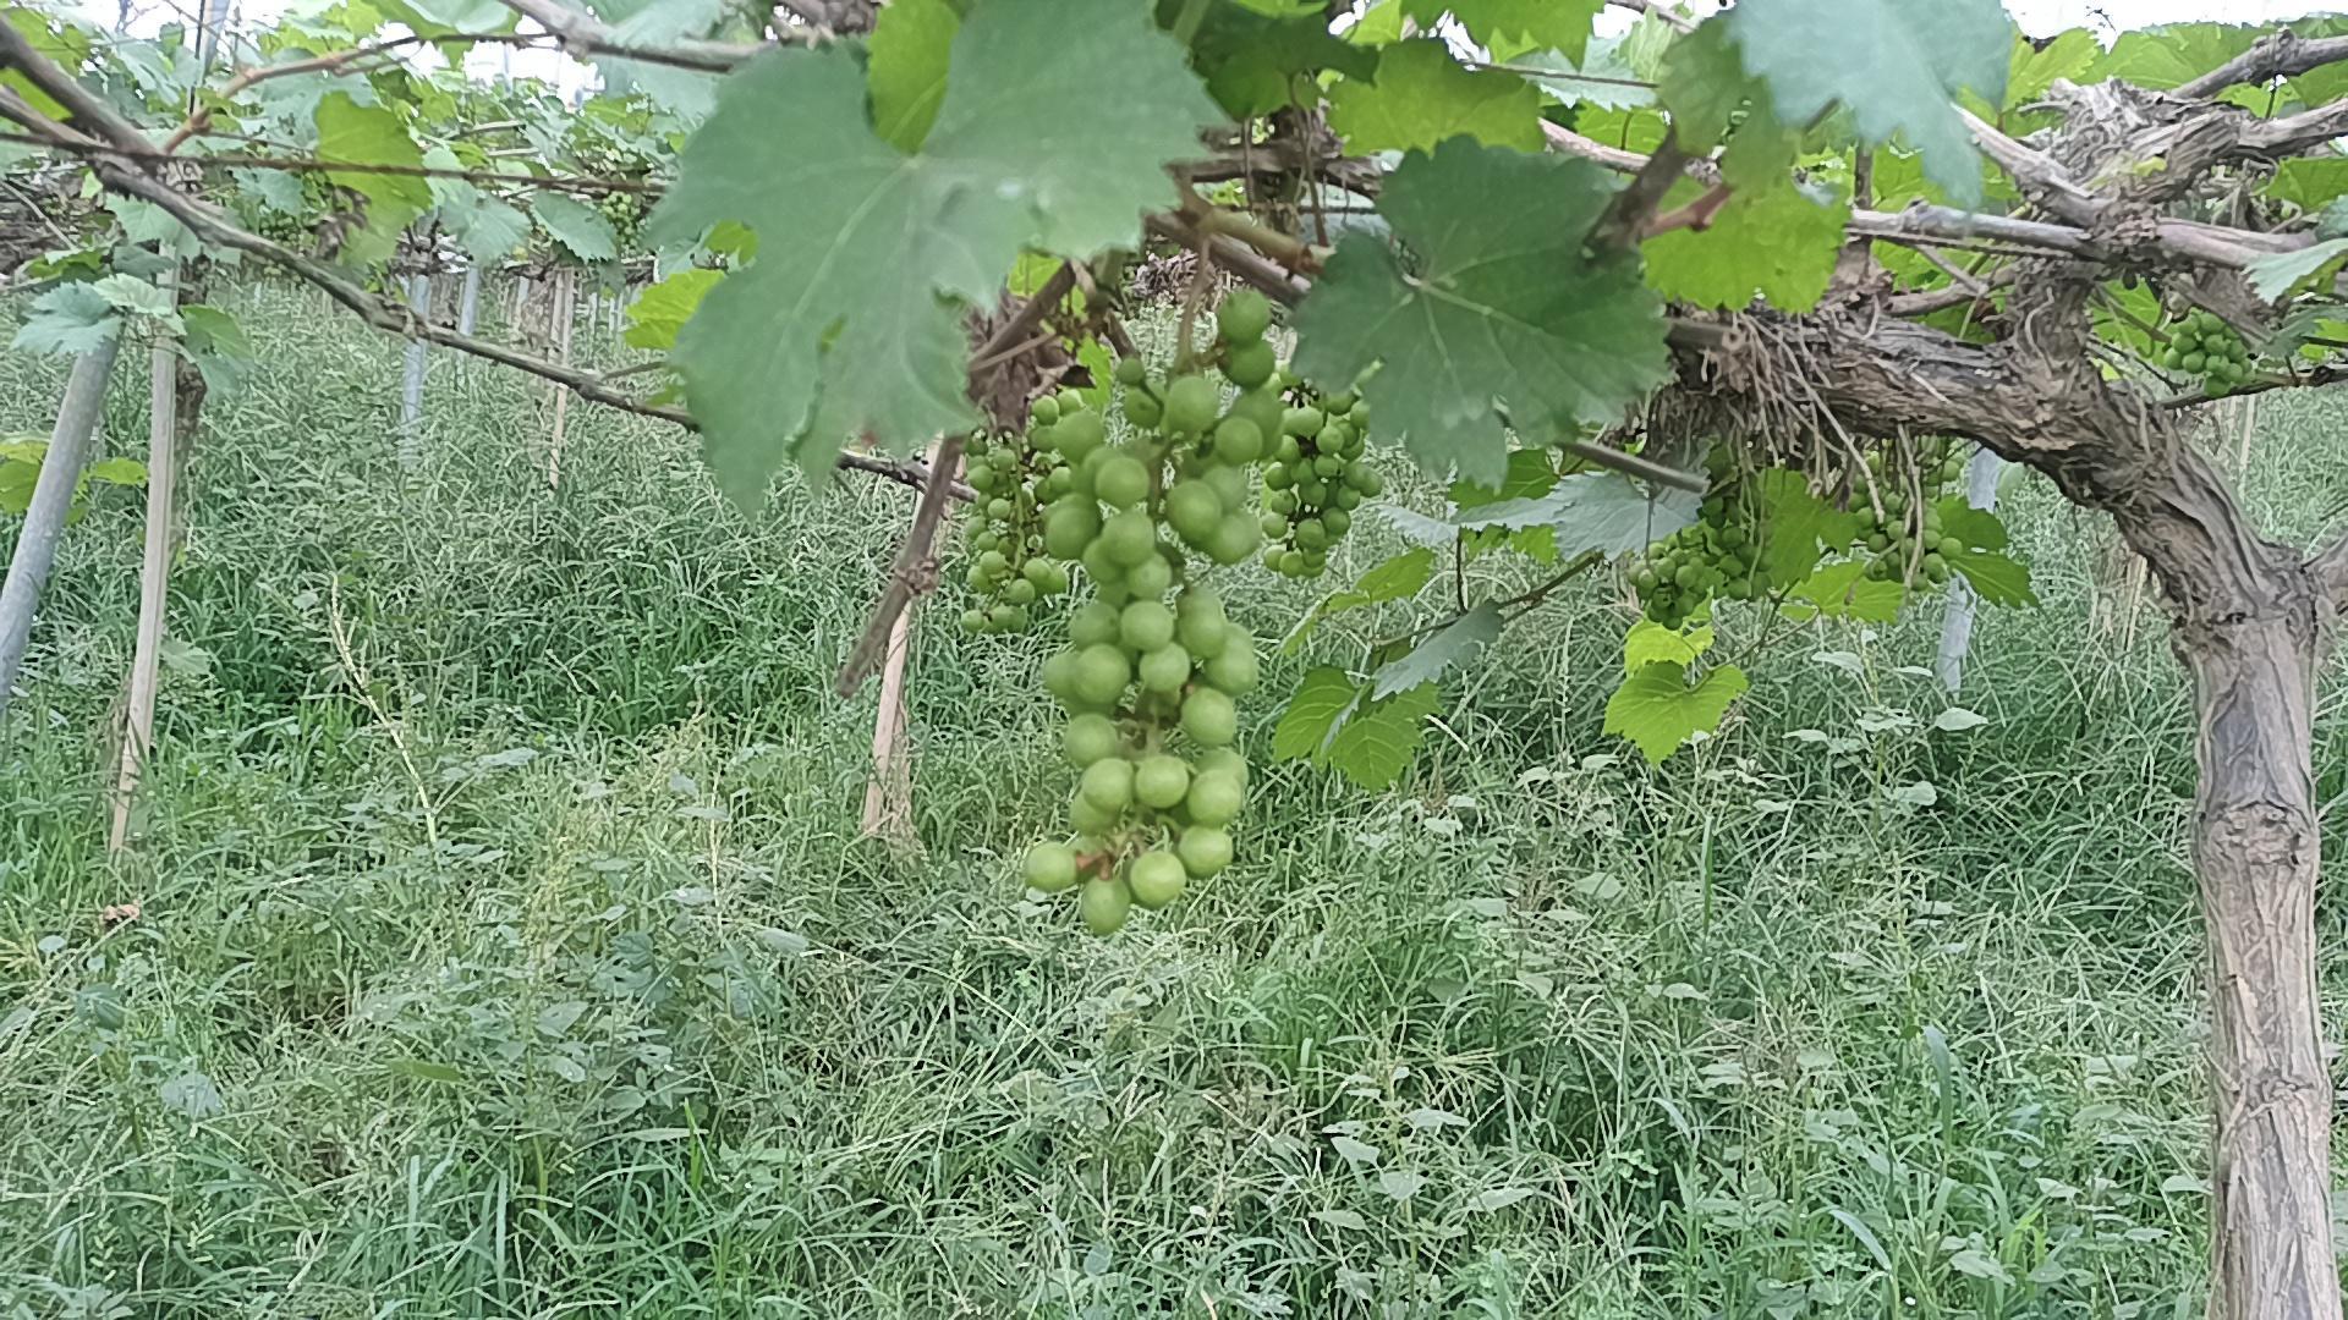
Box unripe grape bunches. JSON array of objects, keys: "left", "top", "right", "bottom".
[
  {"left": 1261, "top": 396, "right": 1382, "bottom": 576},
  {"left": 2150, "top": 310, "right": 2259, "bottom": 396},
  {"left": 1028, "top": 295, "right": 1285, "bottom": 935},
  {"left": 1847, "top": 438, "right": 1965, "bottom": 589},
  {"left": 1628, "top": 435, "right": 1766, "bottom": 628},
  {"left": 961, "top": 396, "right": 1071, "bottom": 632}
]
